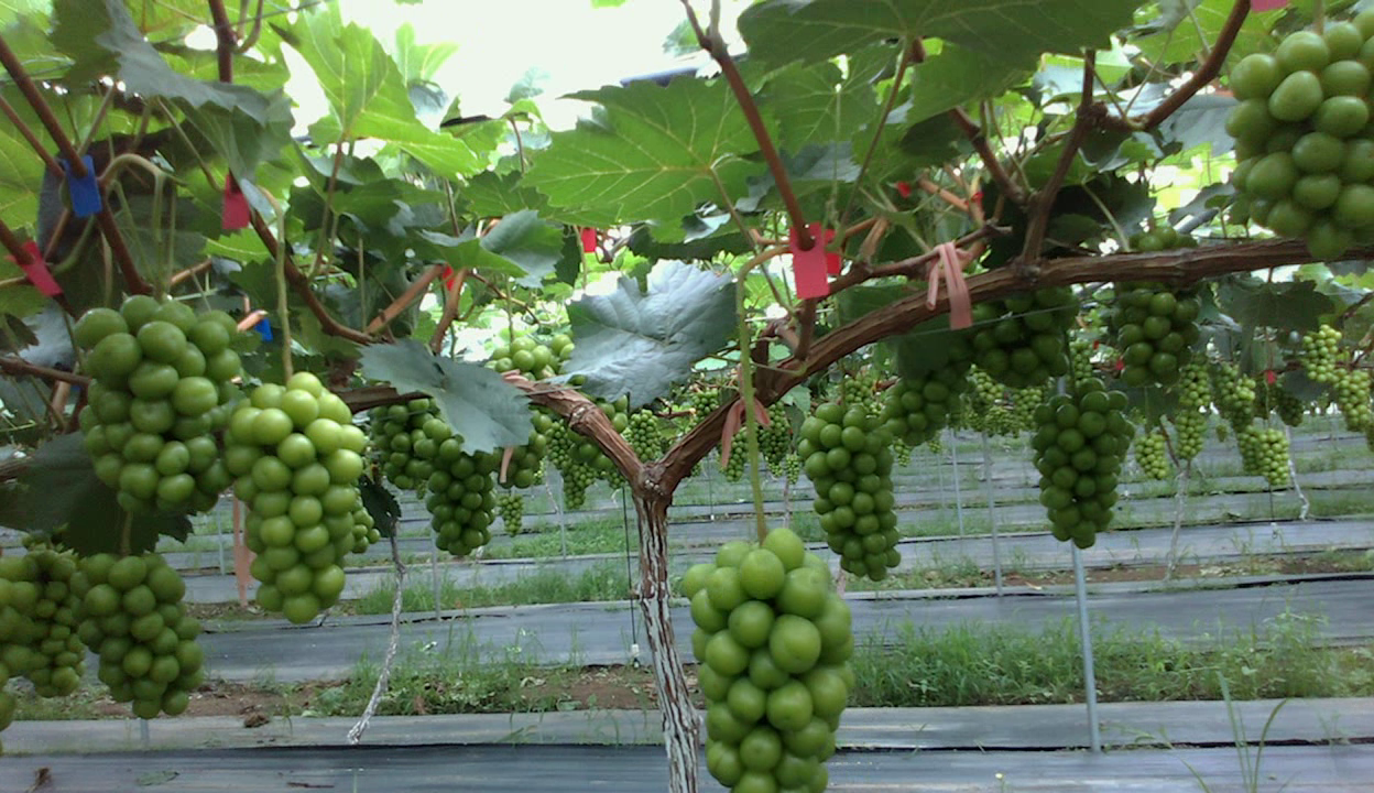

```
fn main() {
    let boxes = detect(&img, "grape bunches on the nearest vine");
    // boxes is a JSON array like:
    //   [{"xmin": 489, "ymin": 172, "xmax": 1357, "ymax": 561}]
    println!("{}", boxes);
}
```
[
  {"xmin": 683, "ymin": 528, "xmax": 857, "ymax": 792},
  {"xmin": 223, "ymin": 370, "xmax": 367, "ymax": 623},
  {"xmin": 69, "ymin": 553, "xmax": 205, "ymax": 720},
  {"xmin": 1229, "ymin": 10, "xmax": 1371, "ymax": 258},
  {"xmin": 75, "ymin": 294, "xmax": 241, "ymax": 513}
]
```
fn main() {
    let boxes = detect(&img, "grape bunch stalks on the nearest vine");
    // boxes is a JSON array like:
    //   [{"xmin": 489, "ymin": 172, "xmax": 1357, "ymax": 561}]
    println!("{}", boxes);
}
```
[
  {"xmin": 120, "ymin": 512, "xmax": 131, "ymax": 558},
  {"xmin": 735, "ymin": 246, "xmax": 790, "ymax": 545},
  {"xmin": 1311, "ymin": 1, "xmax": 1326, "ymax": 37},
  {"xmin": 98, "ymin": 154, "xmax": 167, "ymax": 305},
  {"xmin": 258, "ymin": 183, "xmax": 294, "ymax": 381}
]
